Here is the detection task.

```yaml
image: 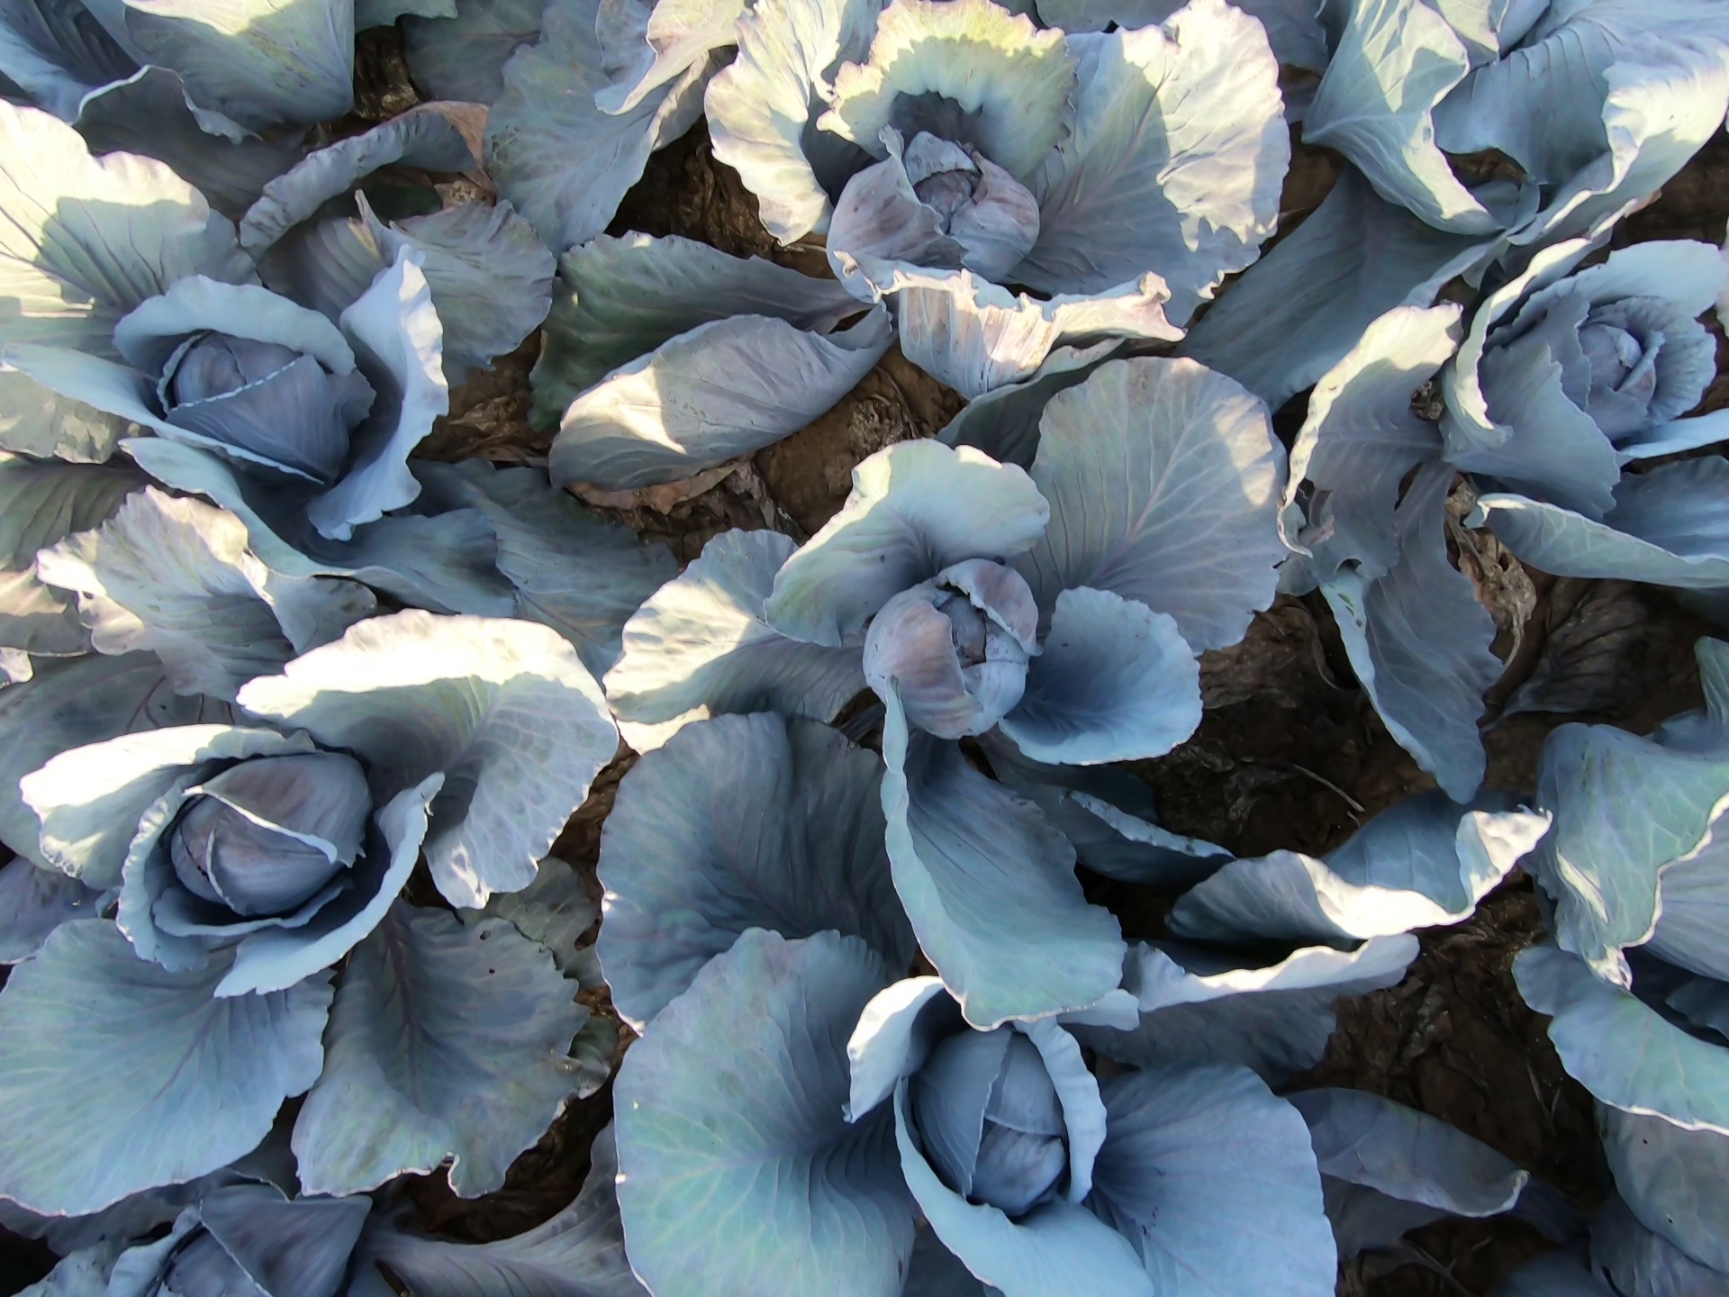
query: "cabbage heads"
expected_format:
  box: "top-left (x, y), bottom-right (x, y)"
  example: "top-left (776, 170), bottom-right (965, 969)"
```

top-left (172, 773), bottom-right (352, 912)
top-left (166, 326), bottom-right (317, 451)
top-left (850, 146), bottom-right (1027, 307)
top-left (867, 567), bottom-right (1035, 730)
top-left (1367, 3), bottom-right (1552, 77)
top-left (930, 1035), bottom-right (1082, 1207)
top-left (151, 1214), bottom-right (316, 1294)
top-left (92, 2), bottom-right (323, 104)
top-left (1535, 321), bottom-right (1658, 435)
